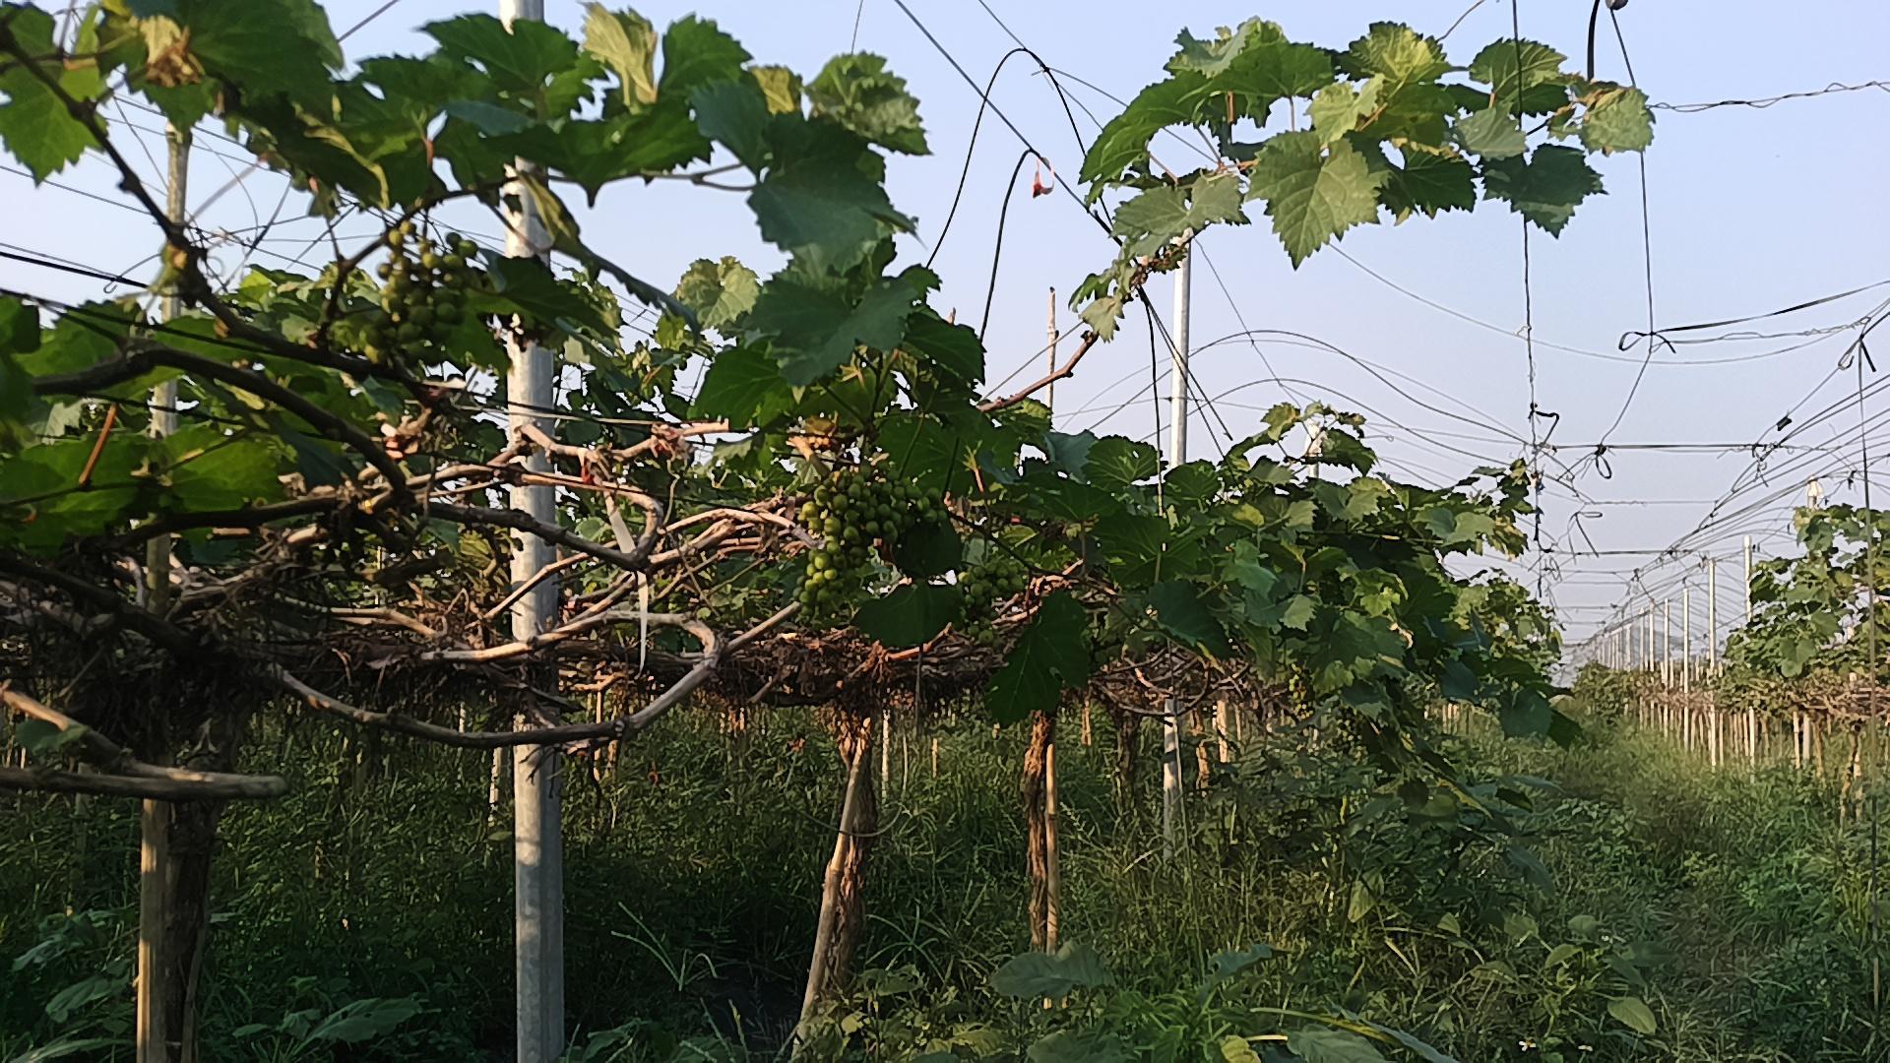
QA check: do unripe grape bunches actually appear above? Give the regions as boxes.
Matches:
[364,221,484,365]
[797,463,951,616]
[960,552,1028,643]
